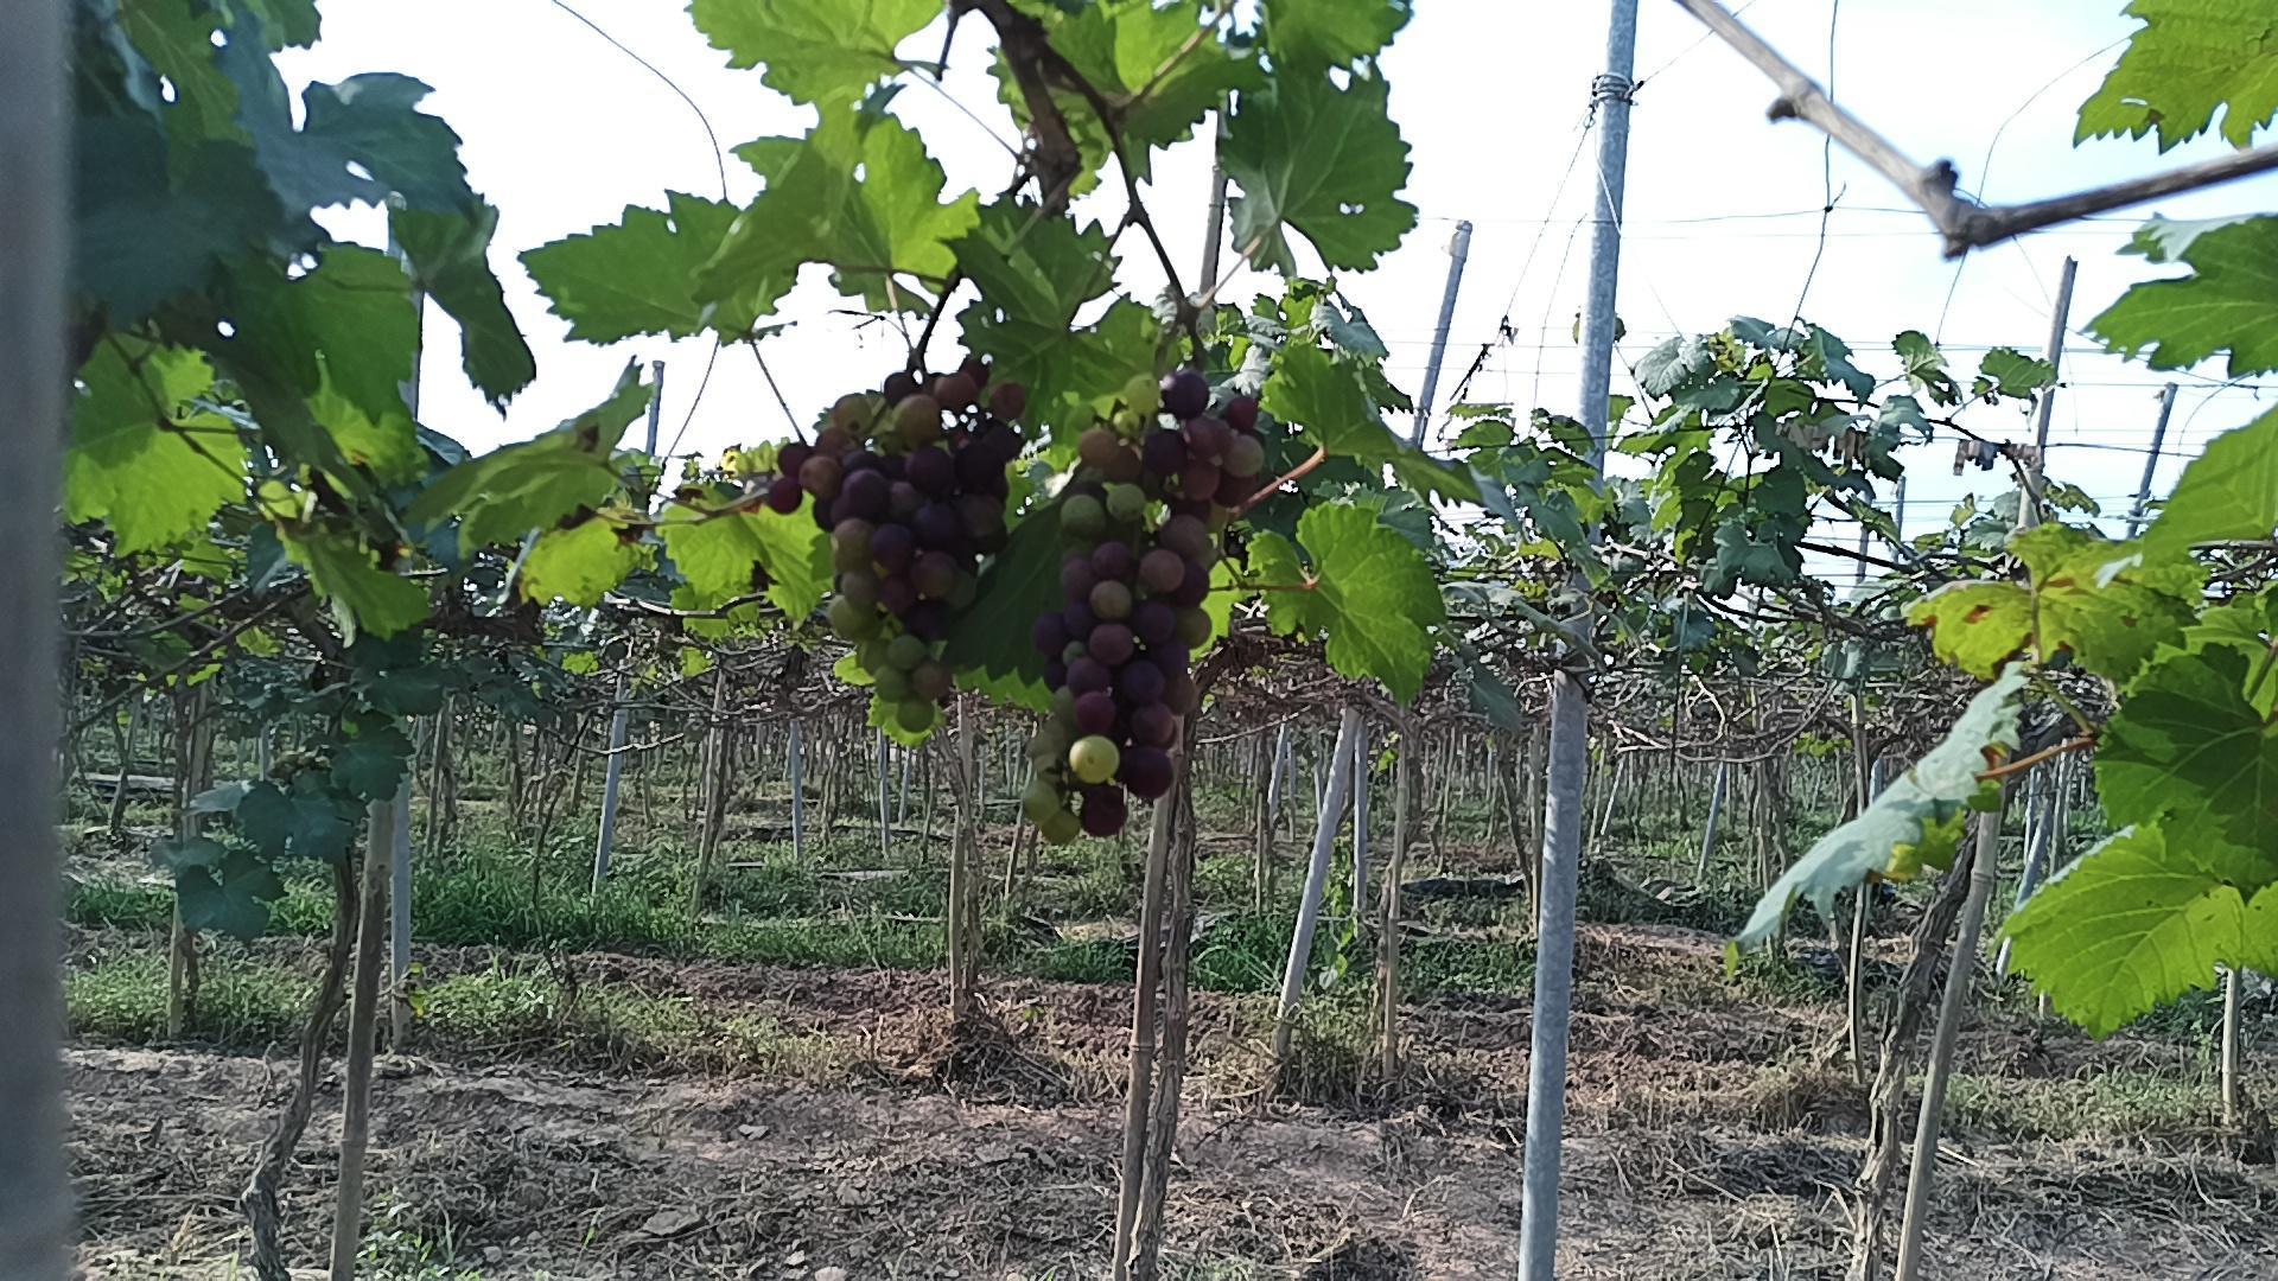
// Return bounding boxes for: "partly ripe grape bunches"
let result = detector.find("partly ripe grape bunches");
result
[766,359,1024,733]
[1032,365,1275,840]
